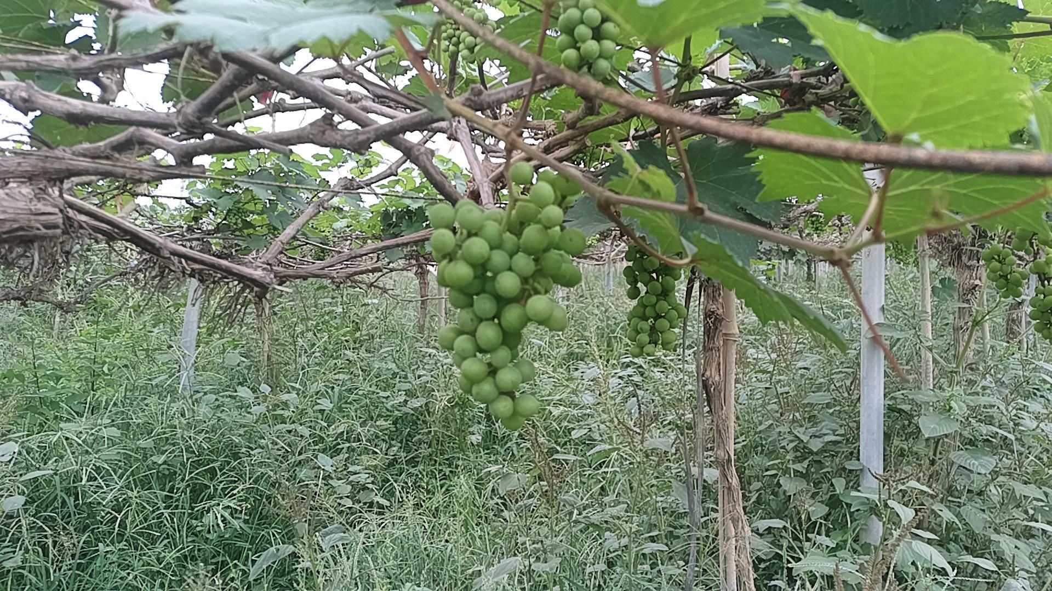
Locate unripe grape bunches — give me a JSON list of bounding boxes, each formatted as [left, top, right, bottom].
[[804, 211, 830, 240], [429, 161, 586, 430], [556, 0, 621, 79], [1012, 221, 1051, 345], [885, 240, 916, 266], [439, 0, 502, 62], [623, 244, 687, 357], [982, 244, 1028, 299]]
